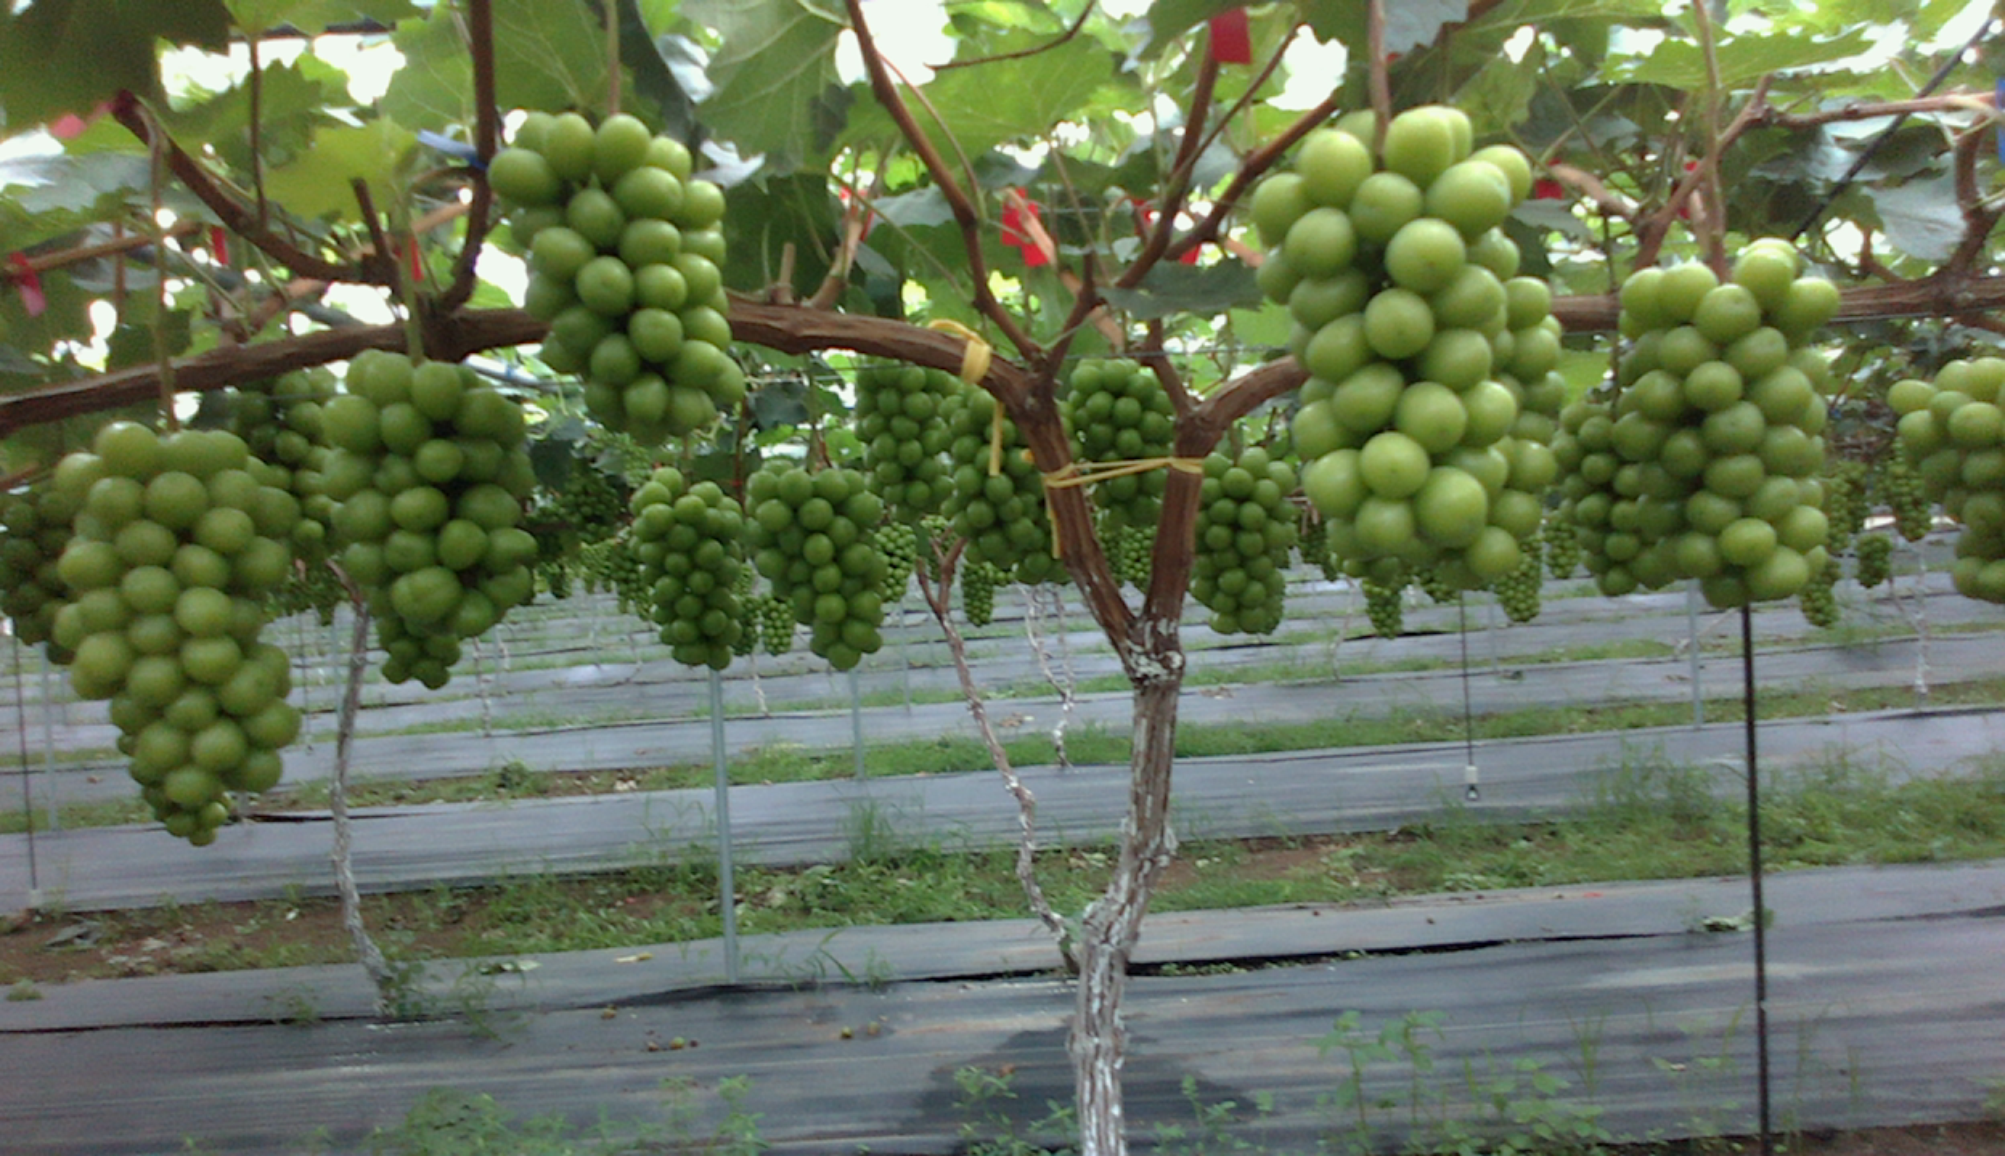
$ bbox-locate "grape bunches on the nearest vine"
[323,347,538,637]
[47,419,308,811]
[1615,236,1841,612]
[1243,106,1571,591]
[1885,356,2003,602]
[480,109,749,450]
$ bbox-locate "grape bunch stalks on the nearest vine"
[398,167,456,366]
[1692,2,1725,279]
[1367,0,1388,172]
[135,106,178,432]
[604,2,619,111]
